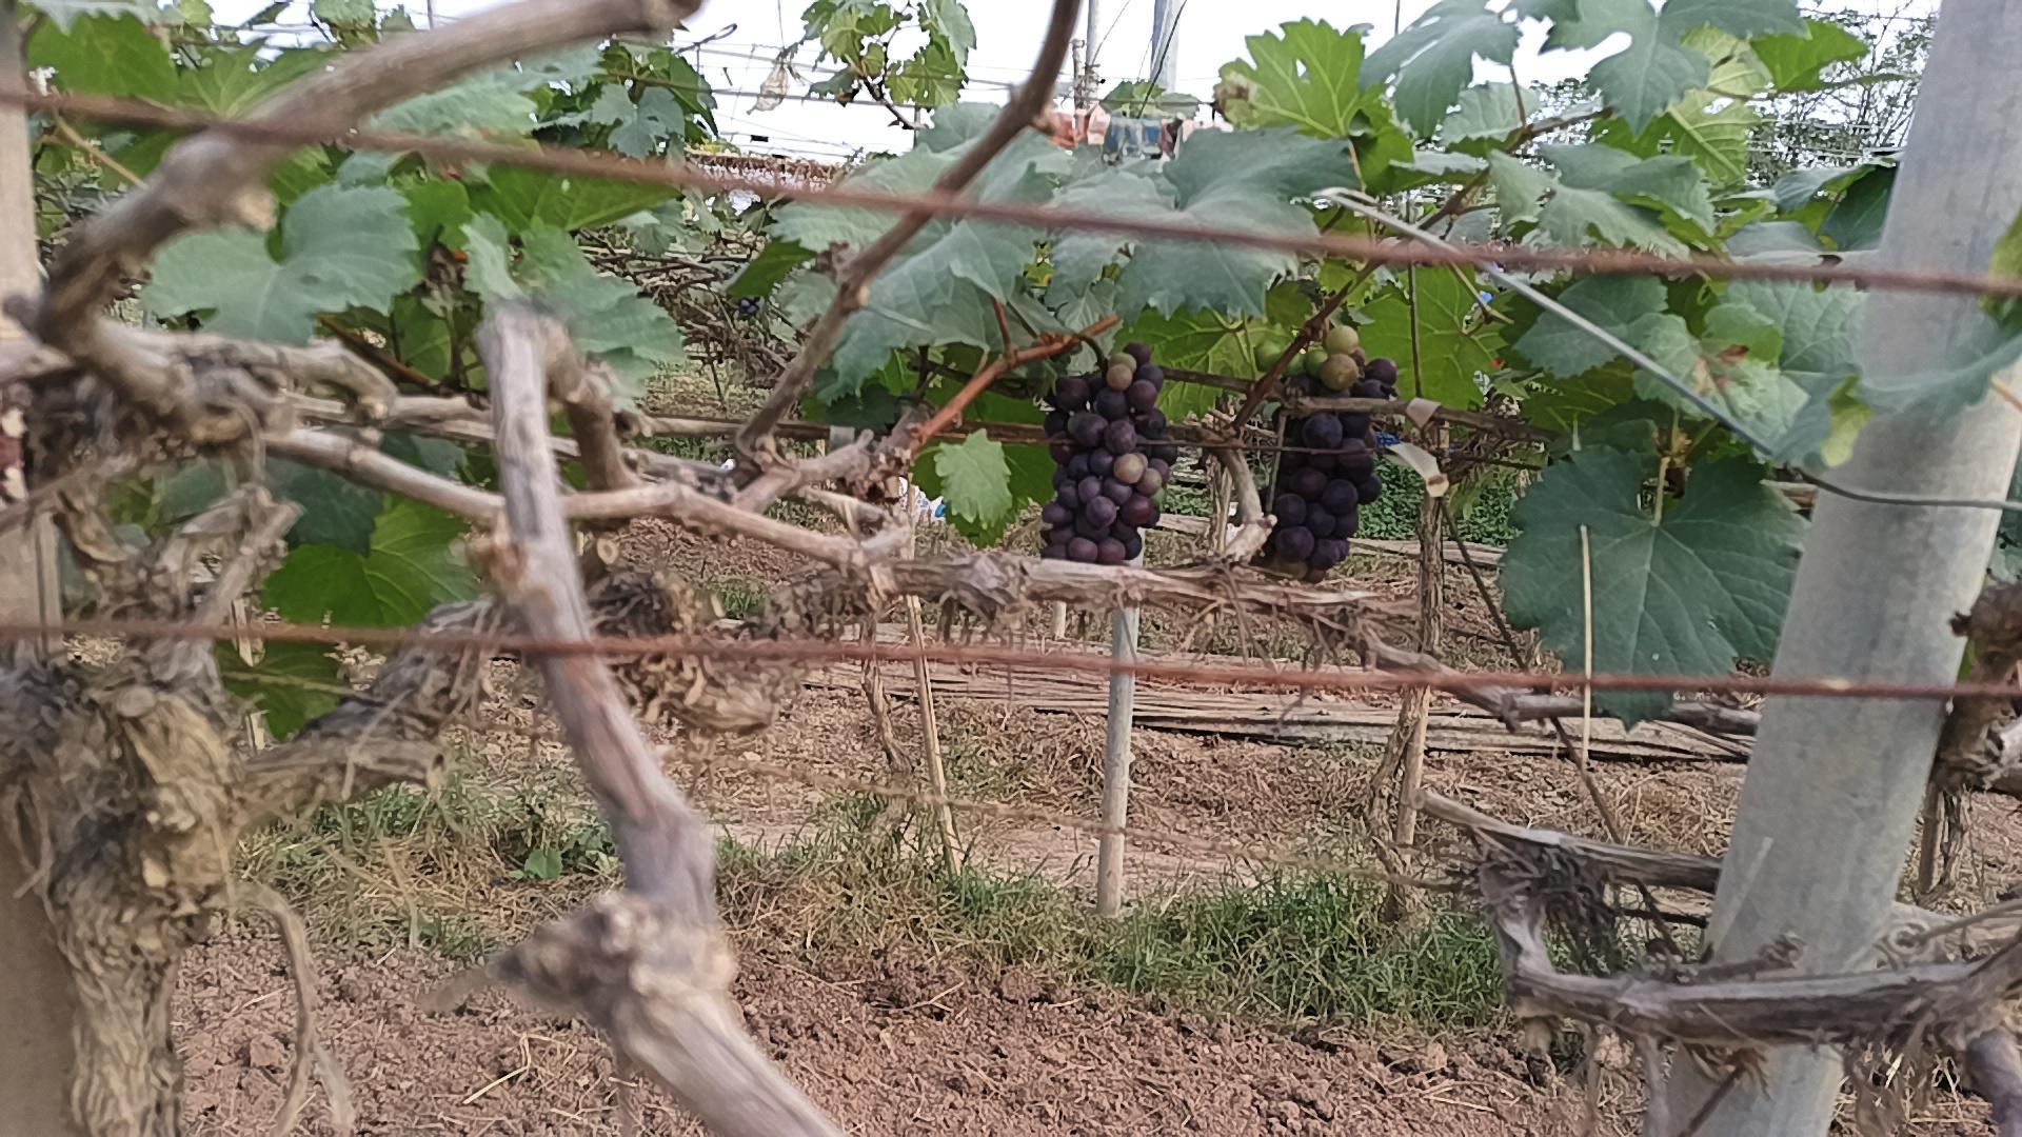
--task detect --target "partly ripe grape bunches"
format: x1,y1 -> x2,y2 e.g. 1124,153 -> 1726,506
1245,316 -> 1397,581
1042,343 -> 1176,564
